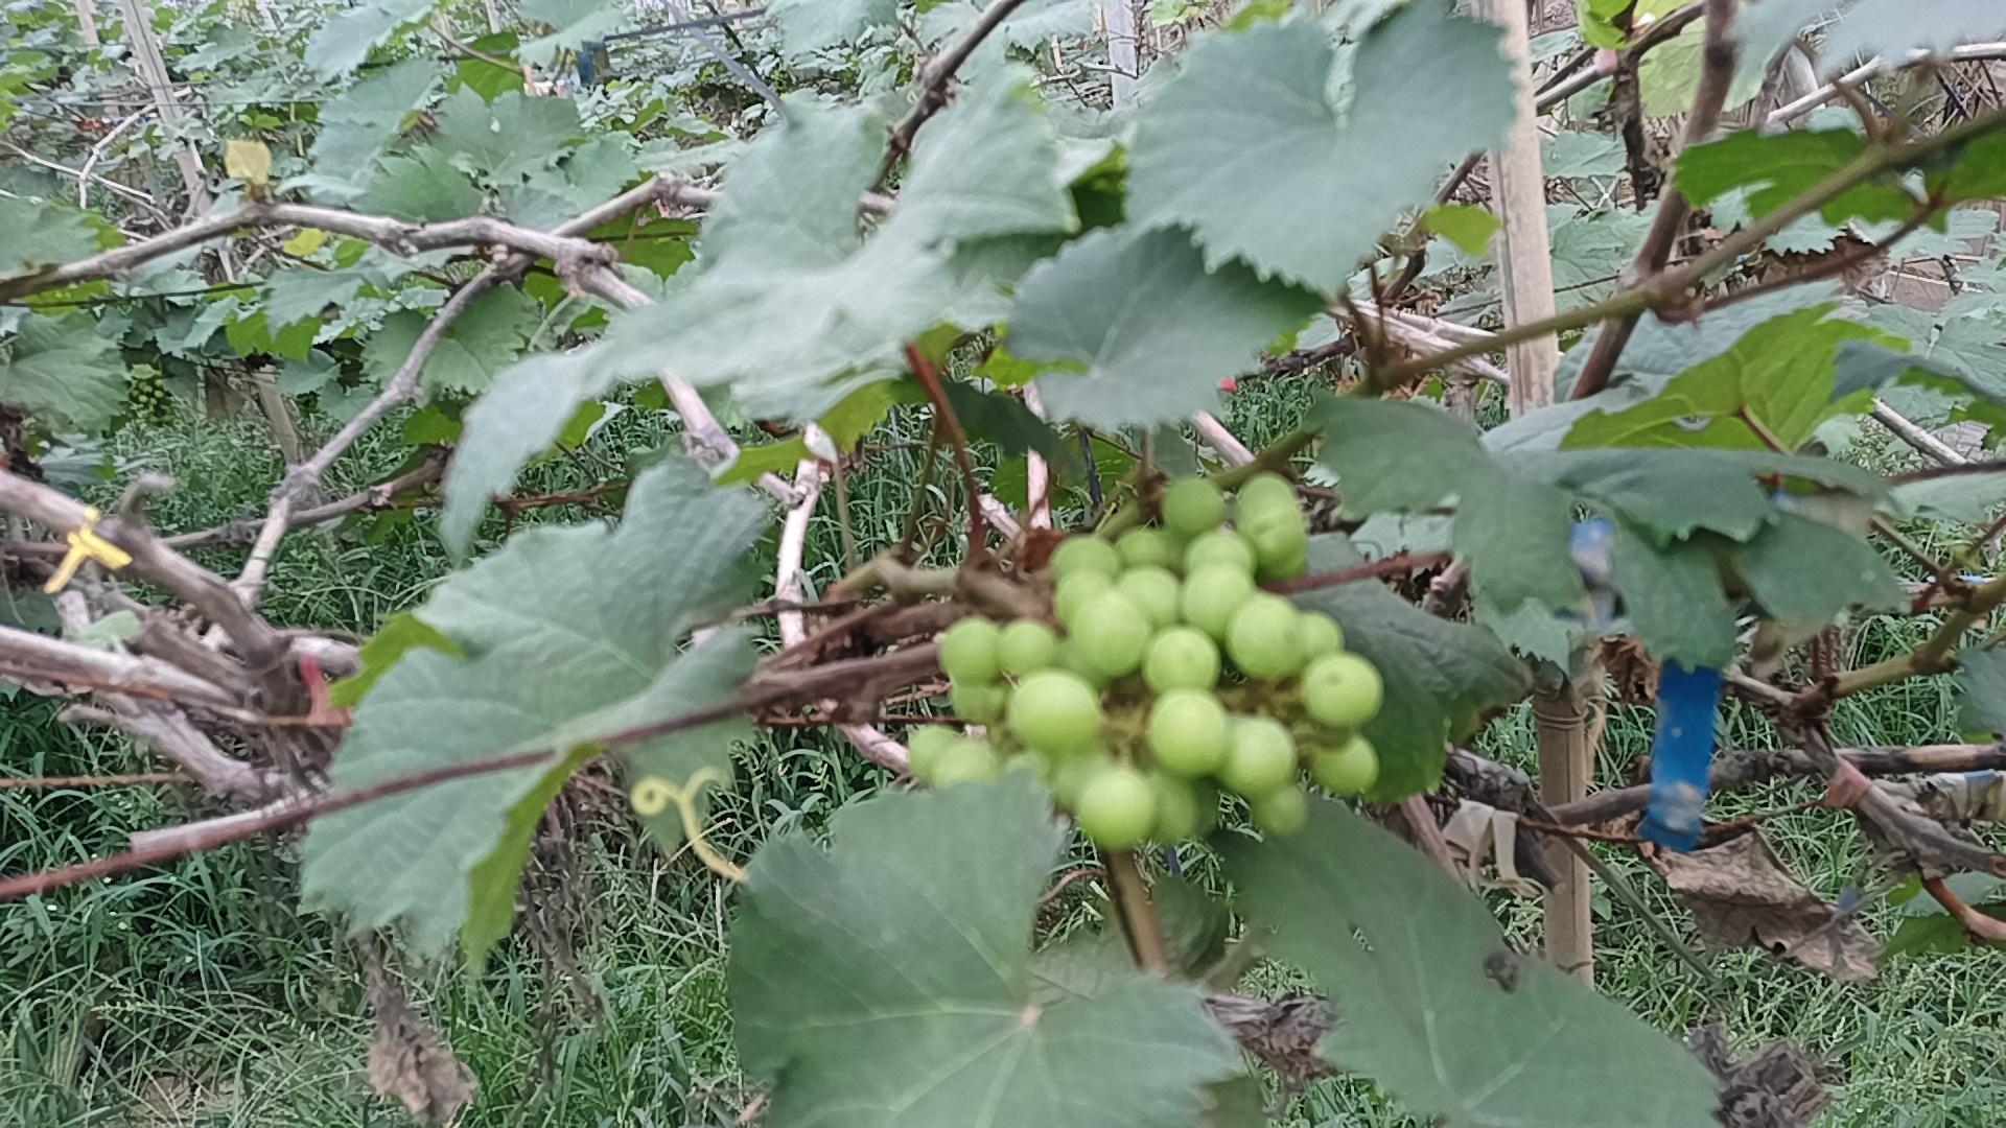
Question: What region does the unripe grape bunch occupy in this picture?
[909,473,1382,851]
